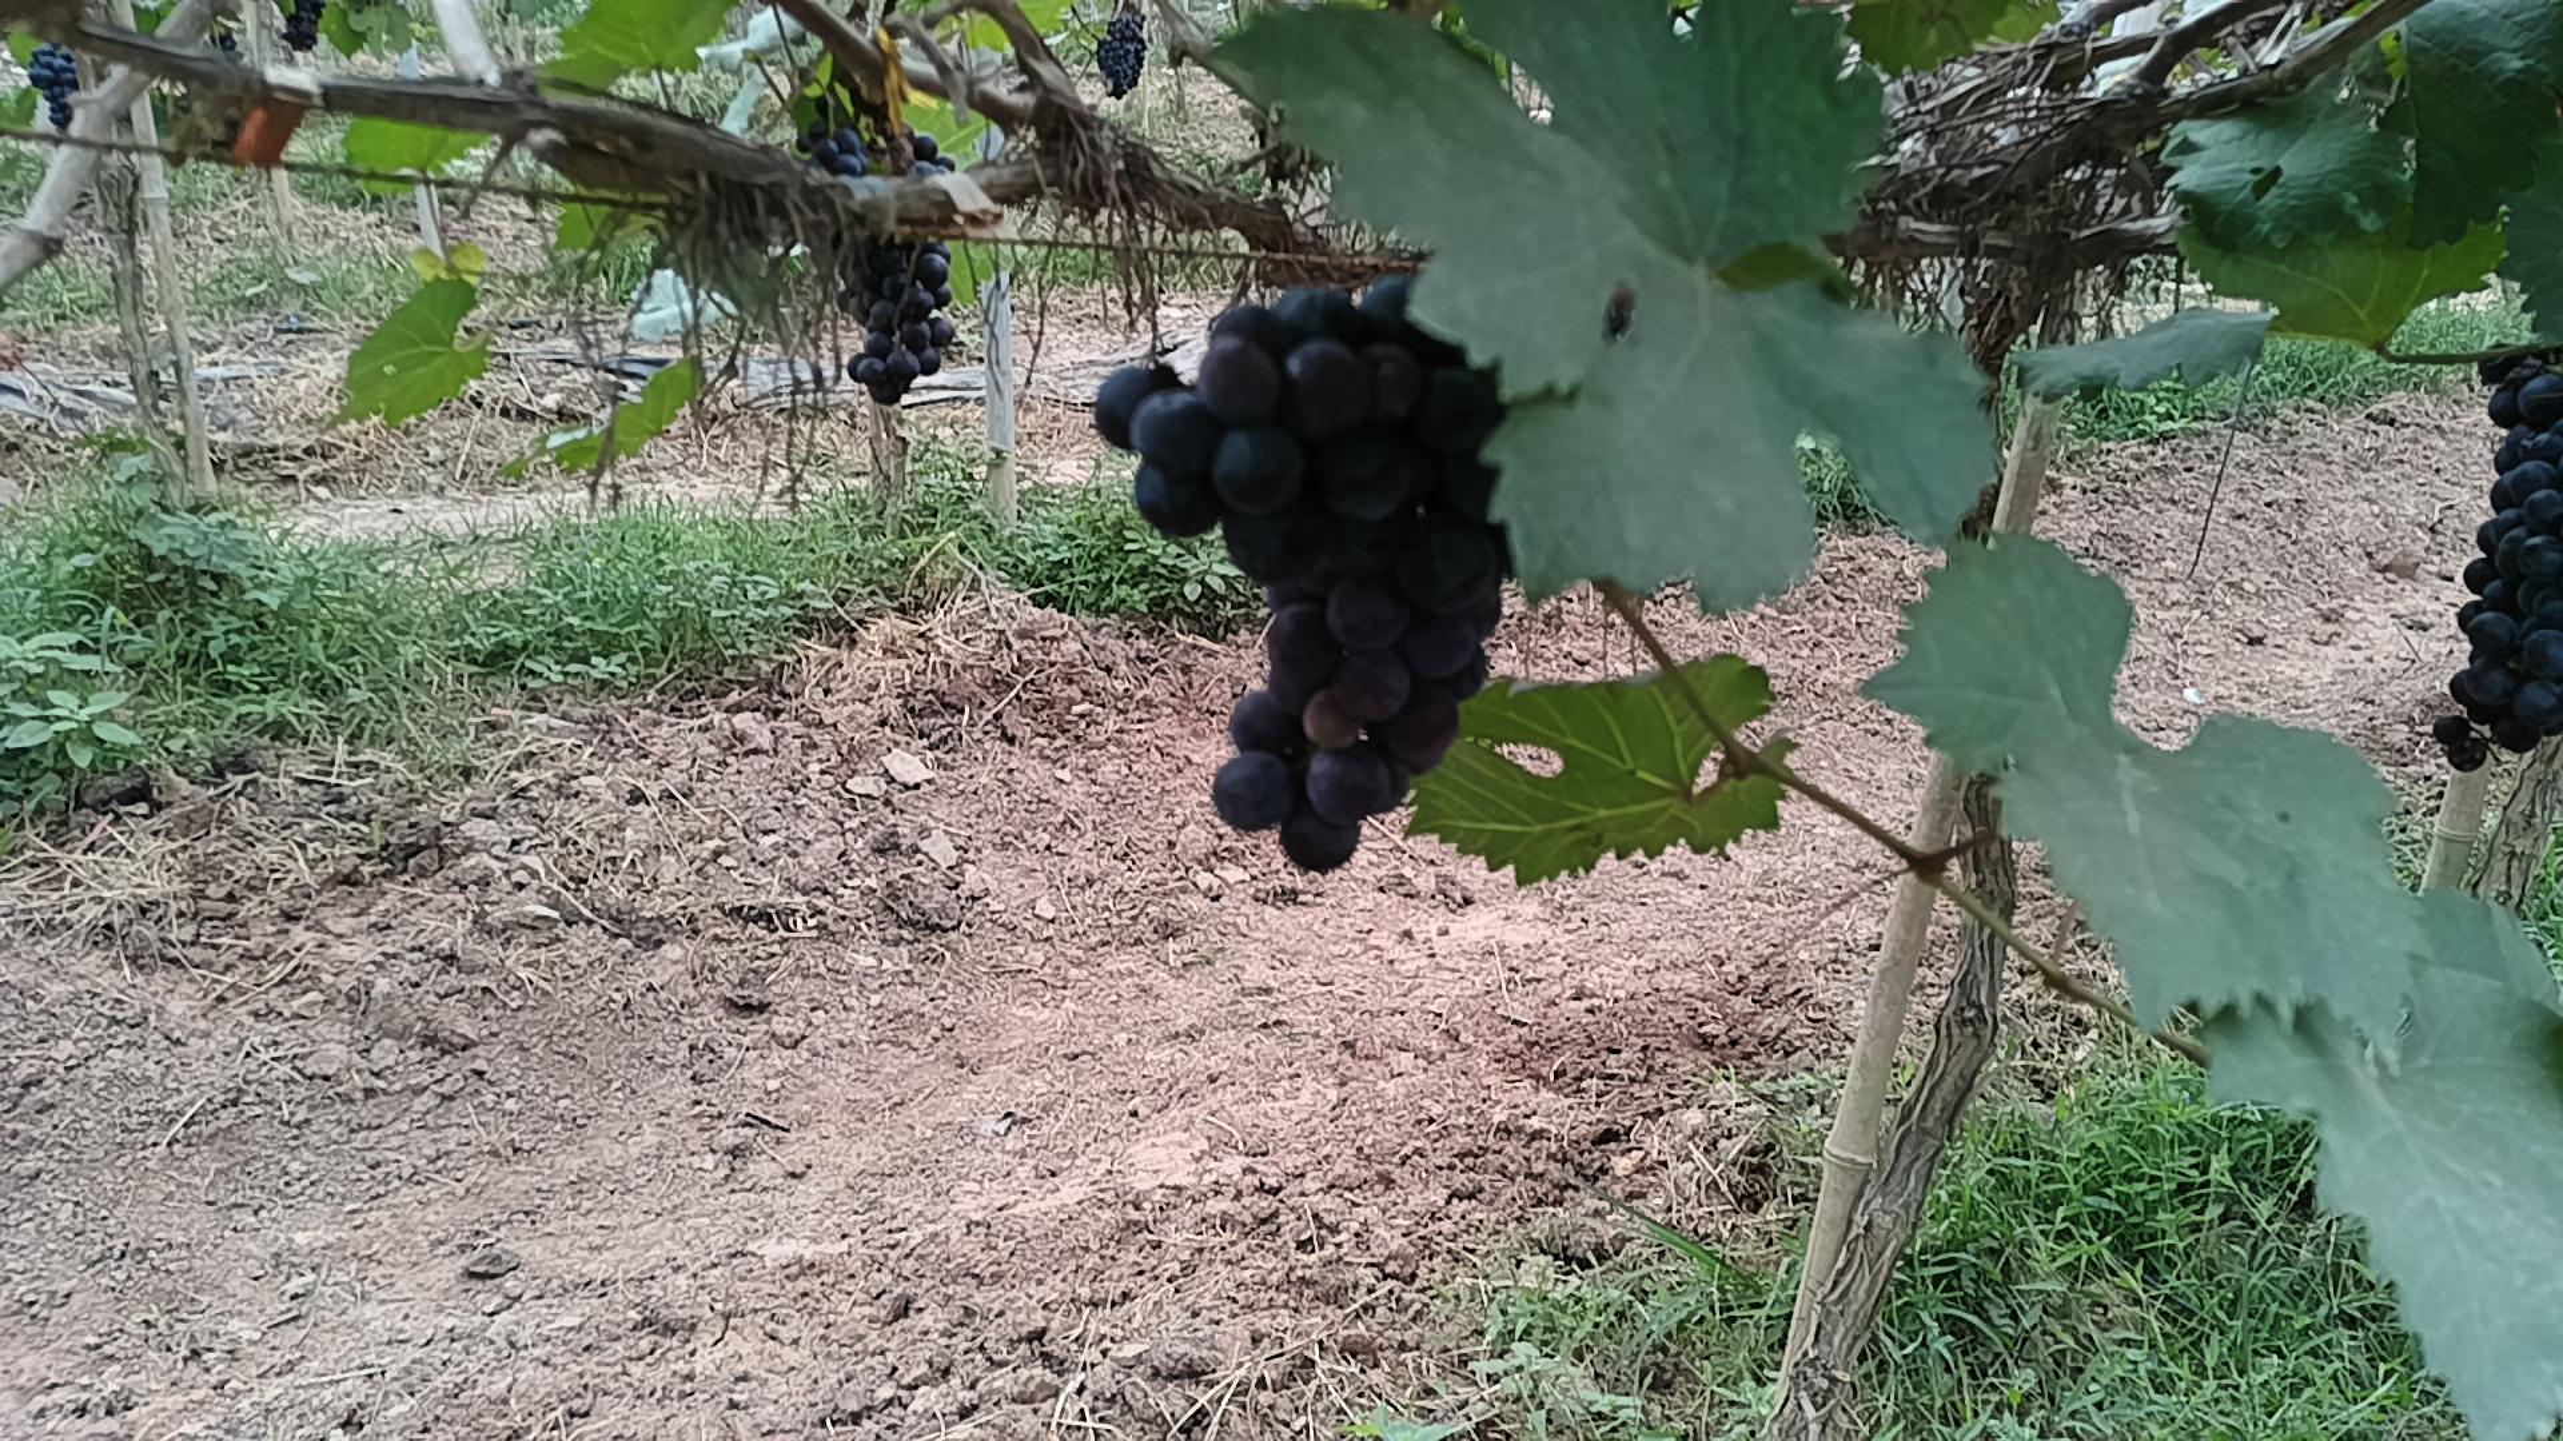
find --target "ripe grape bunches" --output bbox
[1095,0,1147,99]
[275,0,326,51]
[1099,279,1506,870]
[25,43,80,131]
[802,123,956,404]
[2432,358,2562,765]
